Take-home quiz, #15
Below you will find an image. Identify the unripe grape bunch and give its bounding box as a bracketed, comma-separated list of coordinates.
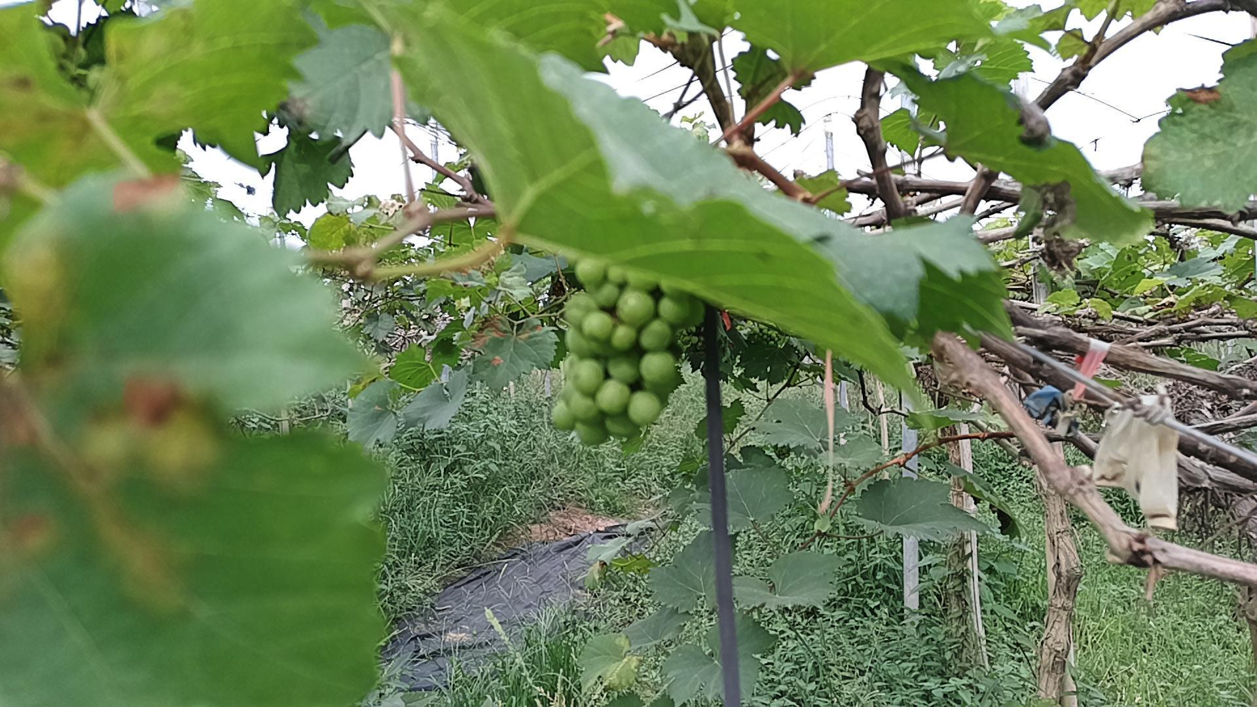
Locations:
[551, 260, 702, 452]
